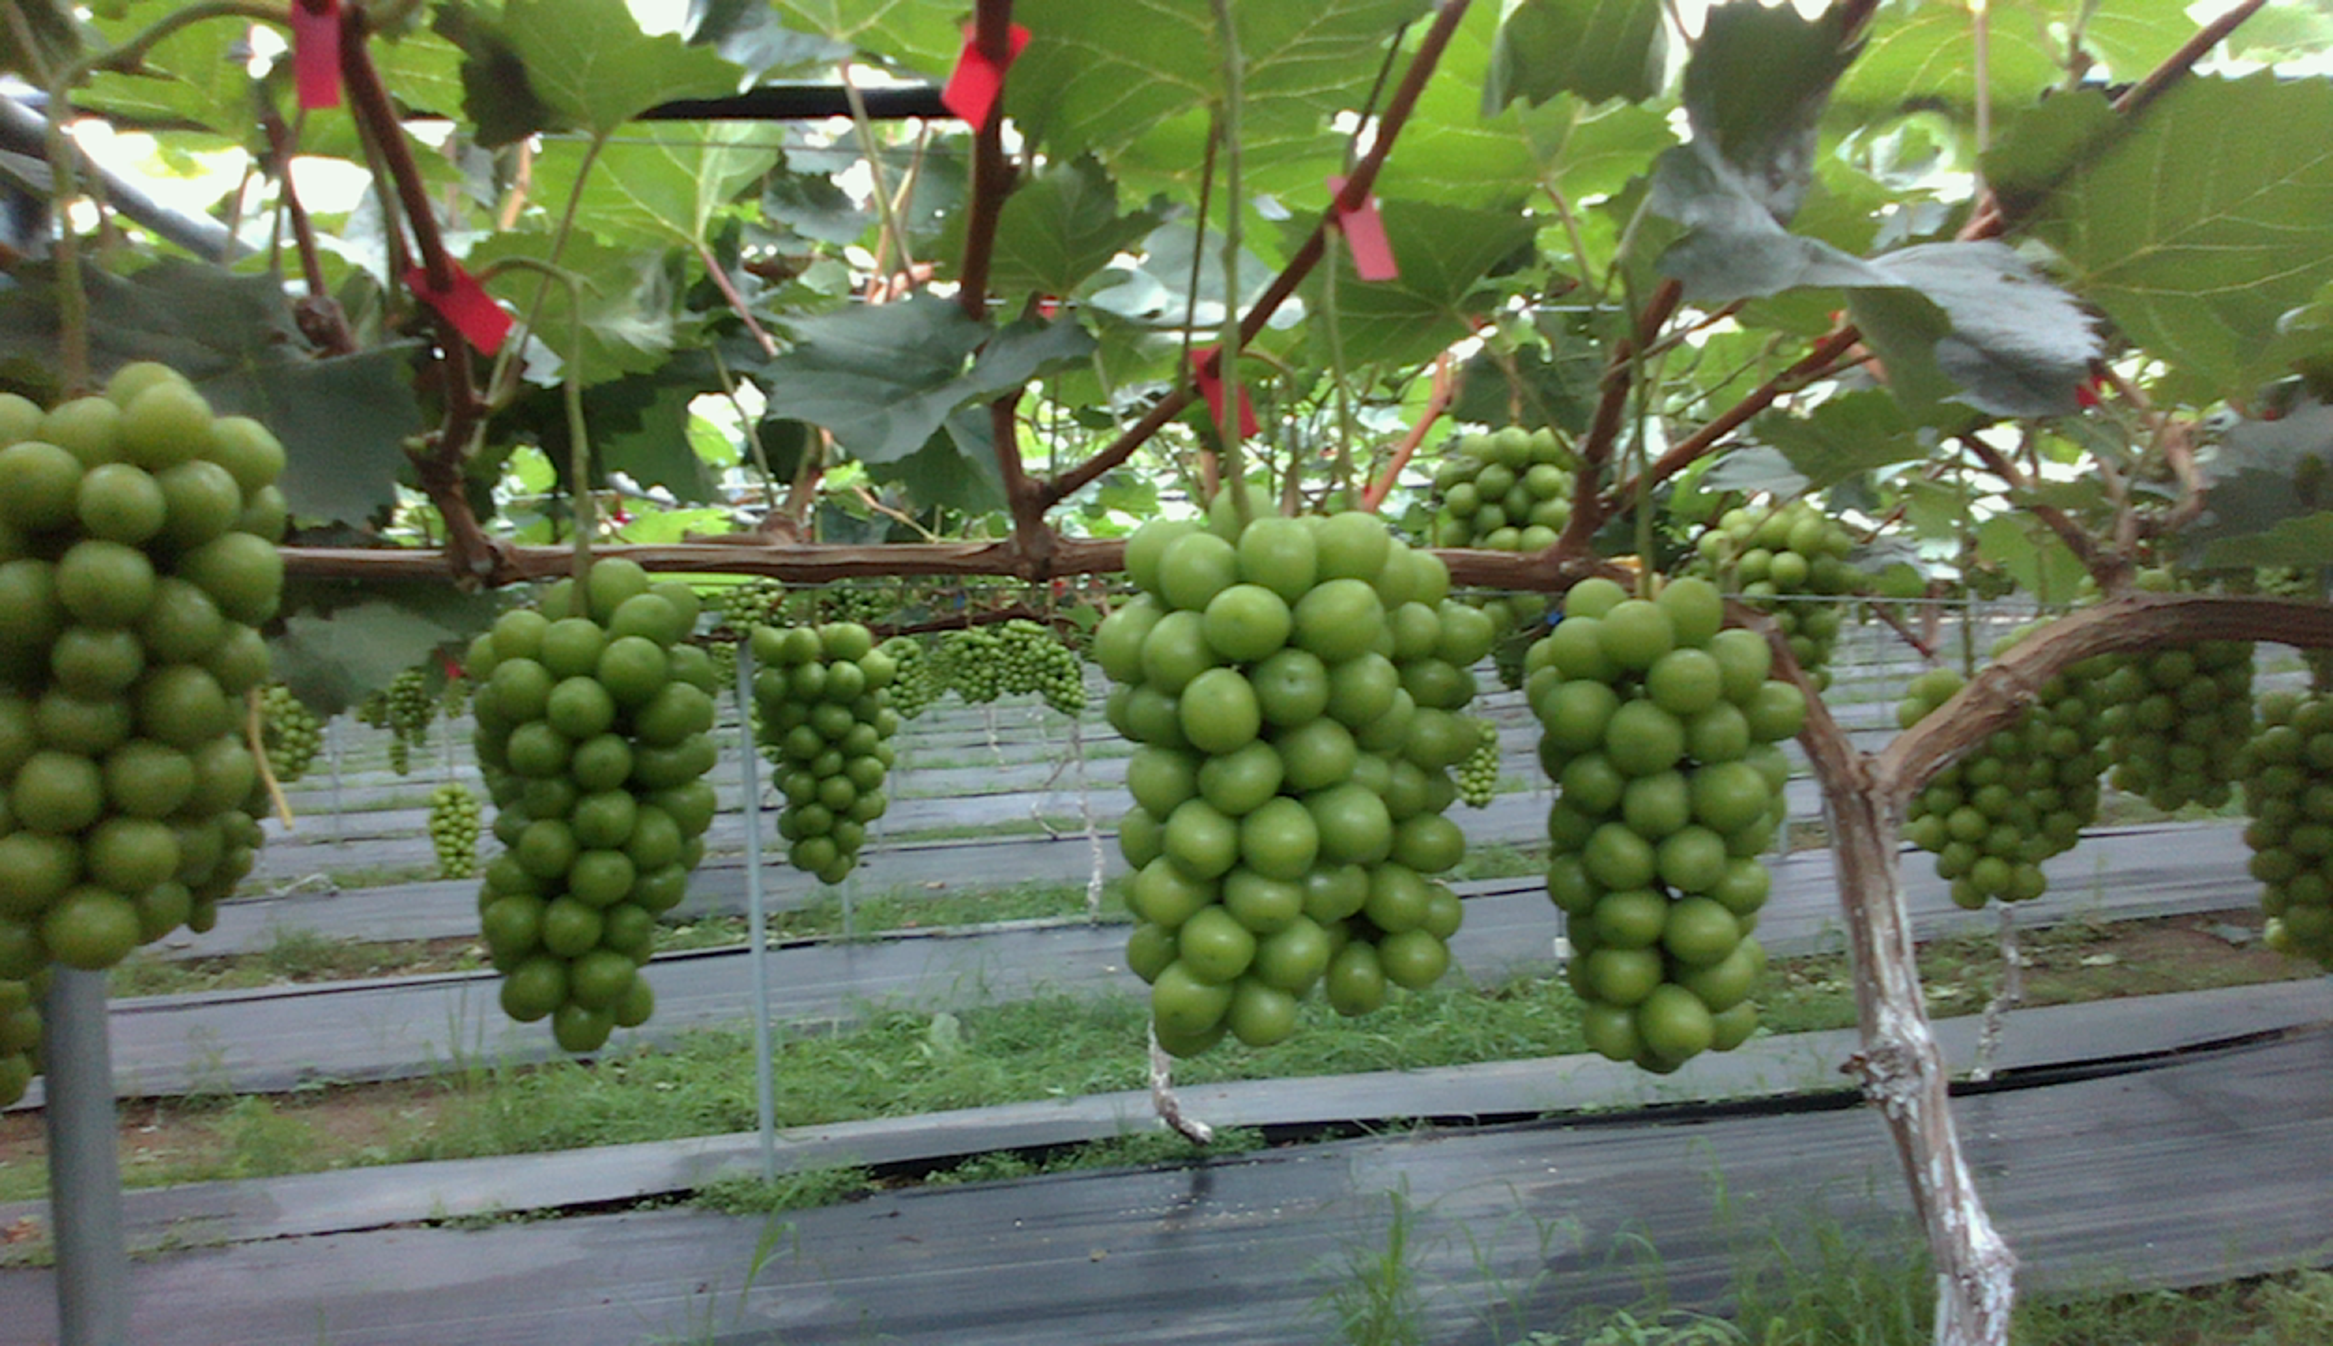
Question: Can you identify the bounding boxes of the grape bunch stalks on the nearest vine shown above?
[45,2,282,396]
[1606,202,1651,596]
[482,256,594,617]
[1215,0,1252,525]
[1314,230,1355,507]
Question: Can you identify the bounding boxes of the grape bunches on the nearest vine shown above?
[1092,482,1408,1058]
[469,557,718,1054]
[1524,578,1800,1075]
[1329,538,1497,1015]
[2,361,292,981]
